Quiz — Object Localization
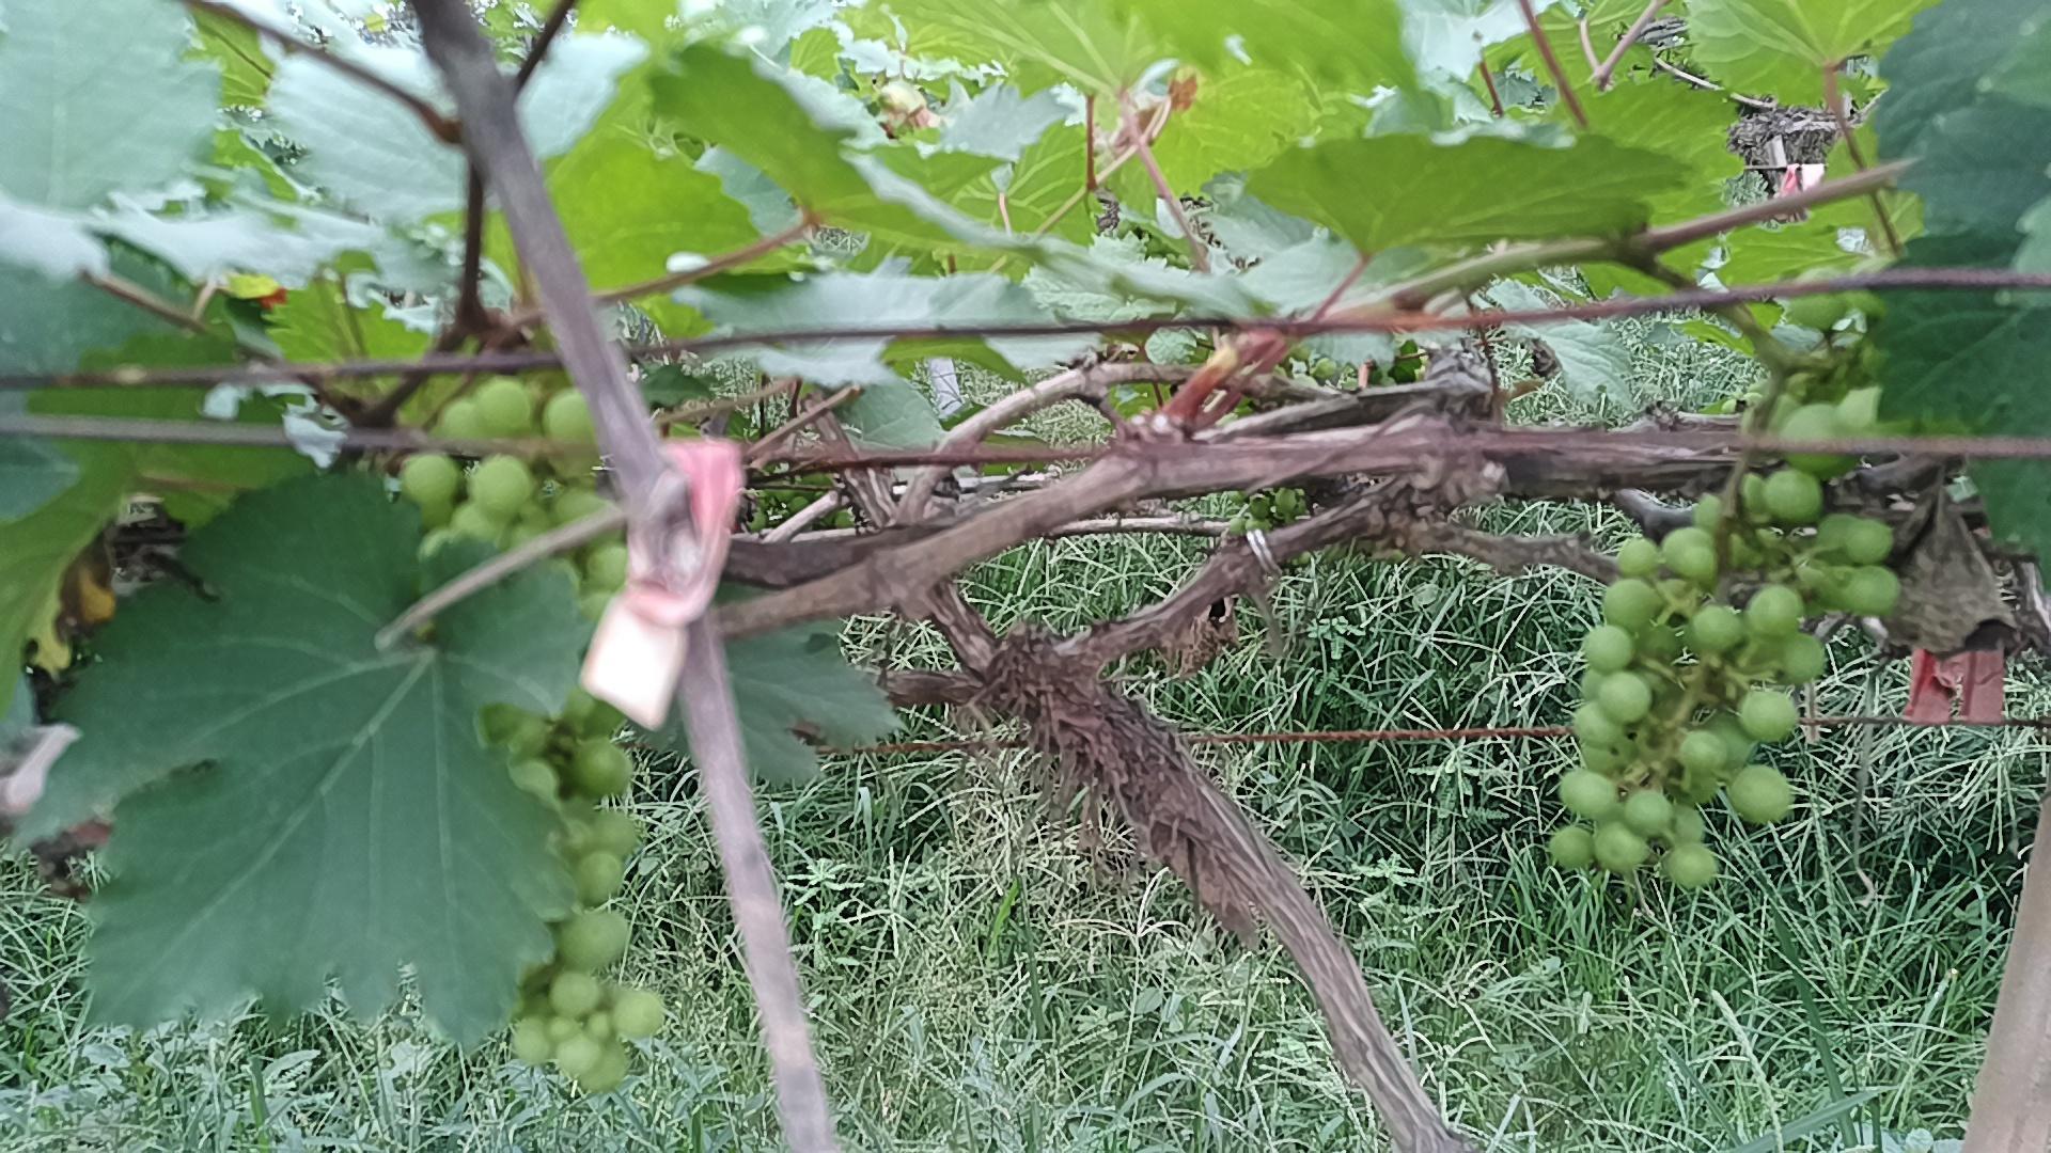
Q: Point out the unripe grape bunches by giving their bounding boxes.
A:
[1549,342,1896,887]
[401,377,666,1091]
